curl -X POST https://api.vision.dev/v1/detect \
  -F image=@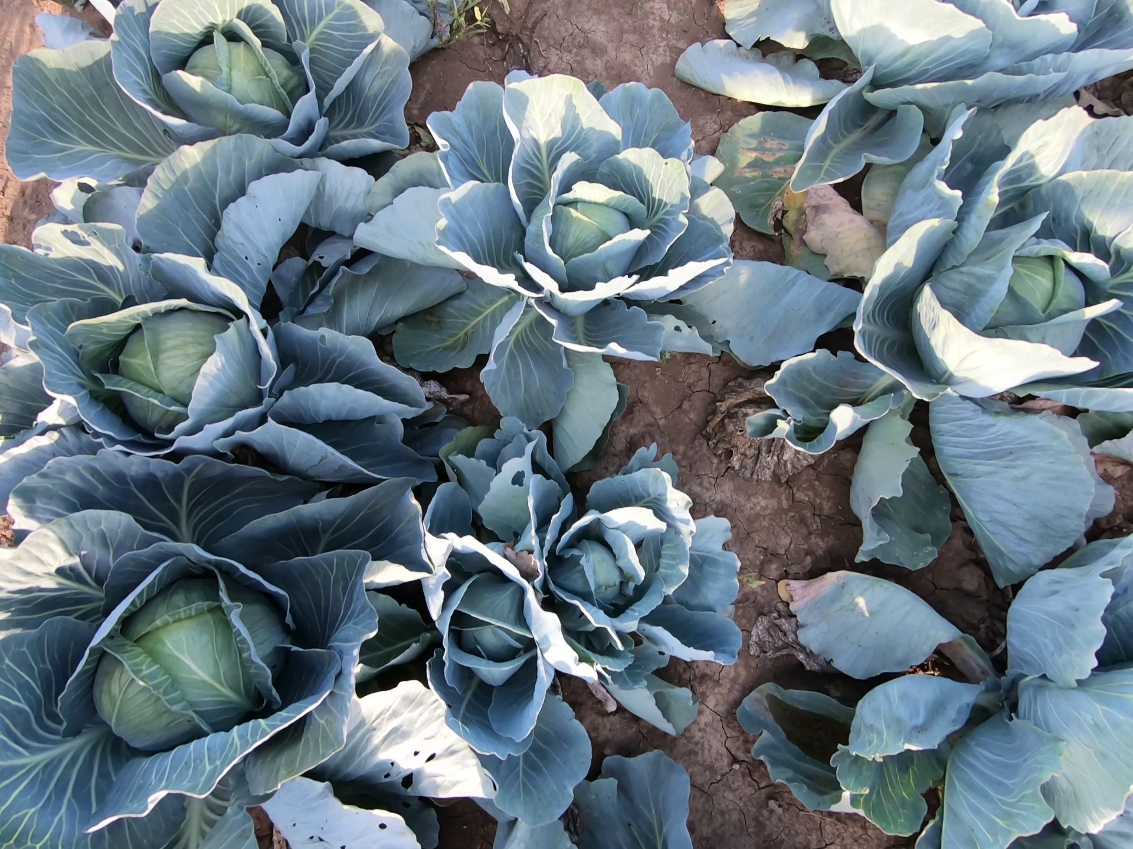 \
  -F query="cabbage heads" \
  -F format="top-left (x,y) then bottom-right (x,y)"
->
top-left (568, 540), bottom-right (621, 603)
top-left (552, 190), bottom-right (633, 281)
top-left (461, 593), bottom-right (523, 660)
top-left (191, 40), bottom-right (293, 130)
top-left (116, 310), bottom-right (257, 431)
top-left (960, 249), bottom-right (1088, 383)
top-left (117, 582), bottom-right (281, 739)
